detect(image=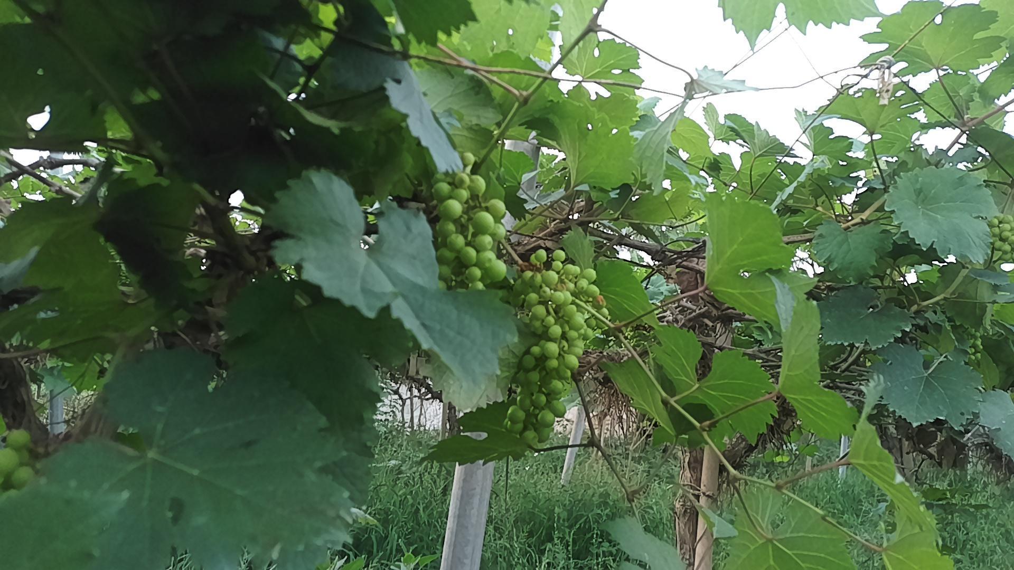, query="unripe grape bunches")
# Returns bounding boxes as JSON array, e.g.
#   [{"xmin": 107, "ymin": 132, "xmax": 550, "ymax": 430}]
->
[
  {"xmin": 964, "ymin": 328, "xmax": 983, "ymax": 364},
  {"xmin": 431, "ymin": 153, "xmax": 507, "ymax": 291},
  {"xmin": 0, "ymin": 429, "xmax": 38, "ymax": 497},
  {"xmin": 988, "ymin": 214, "xmax": 1013, "ymax": 263},
  {"xmin": 503, "ymin": 249, "xmax": 608, "ymax": 445}
]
